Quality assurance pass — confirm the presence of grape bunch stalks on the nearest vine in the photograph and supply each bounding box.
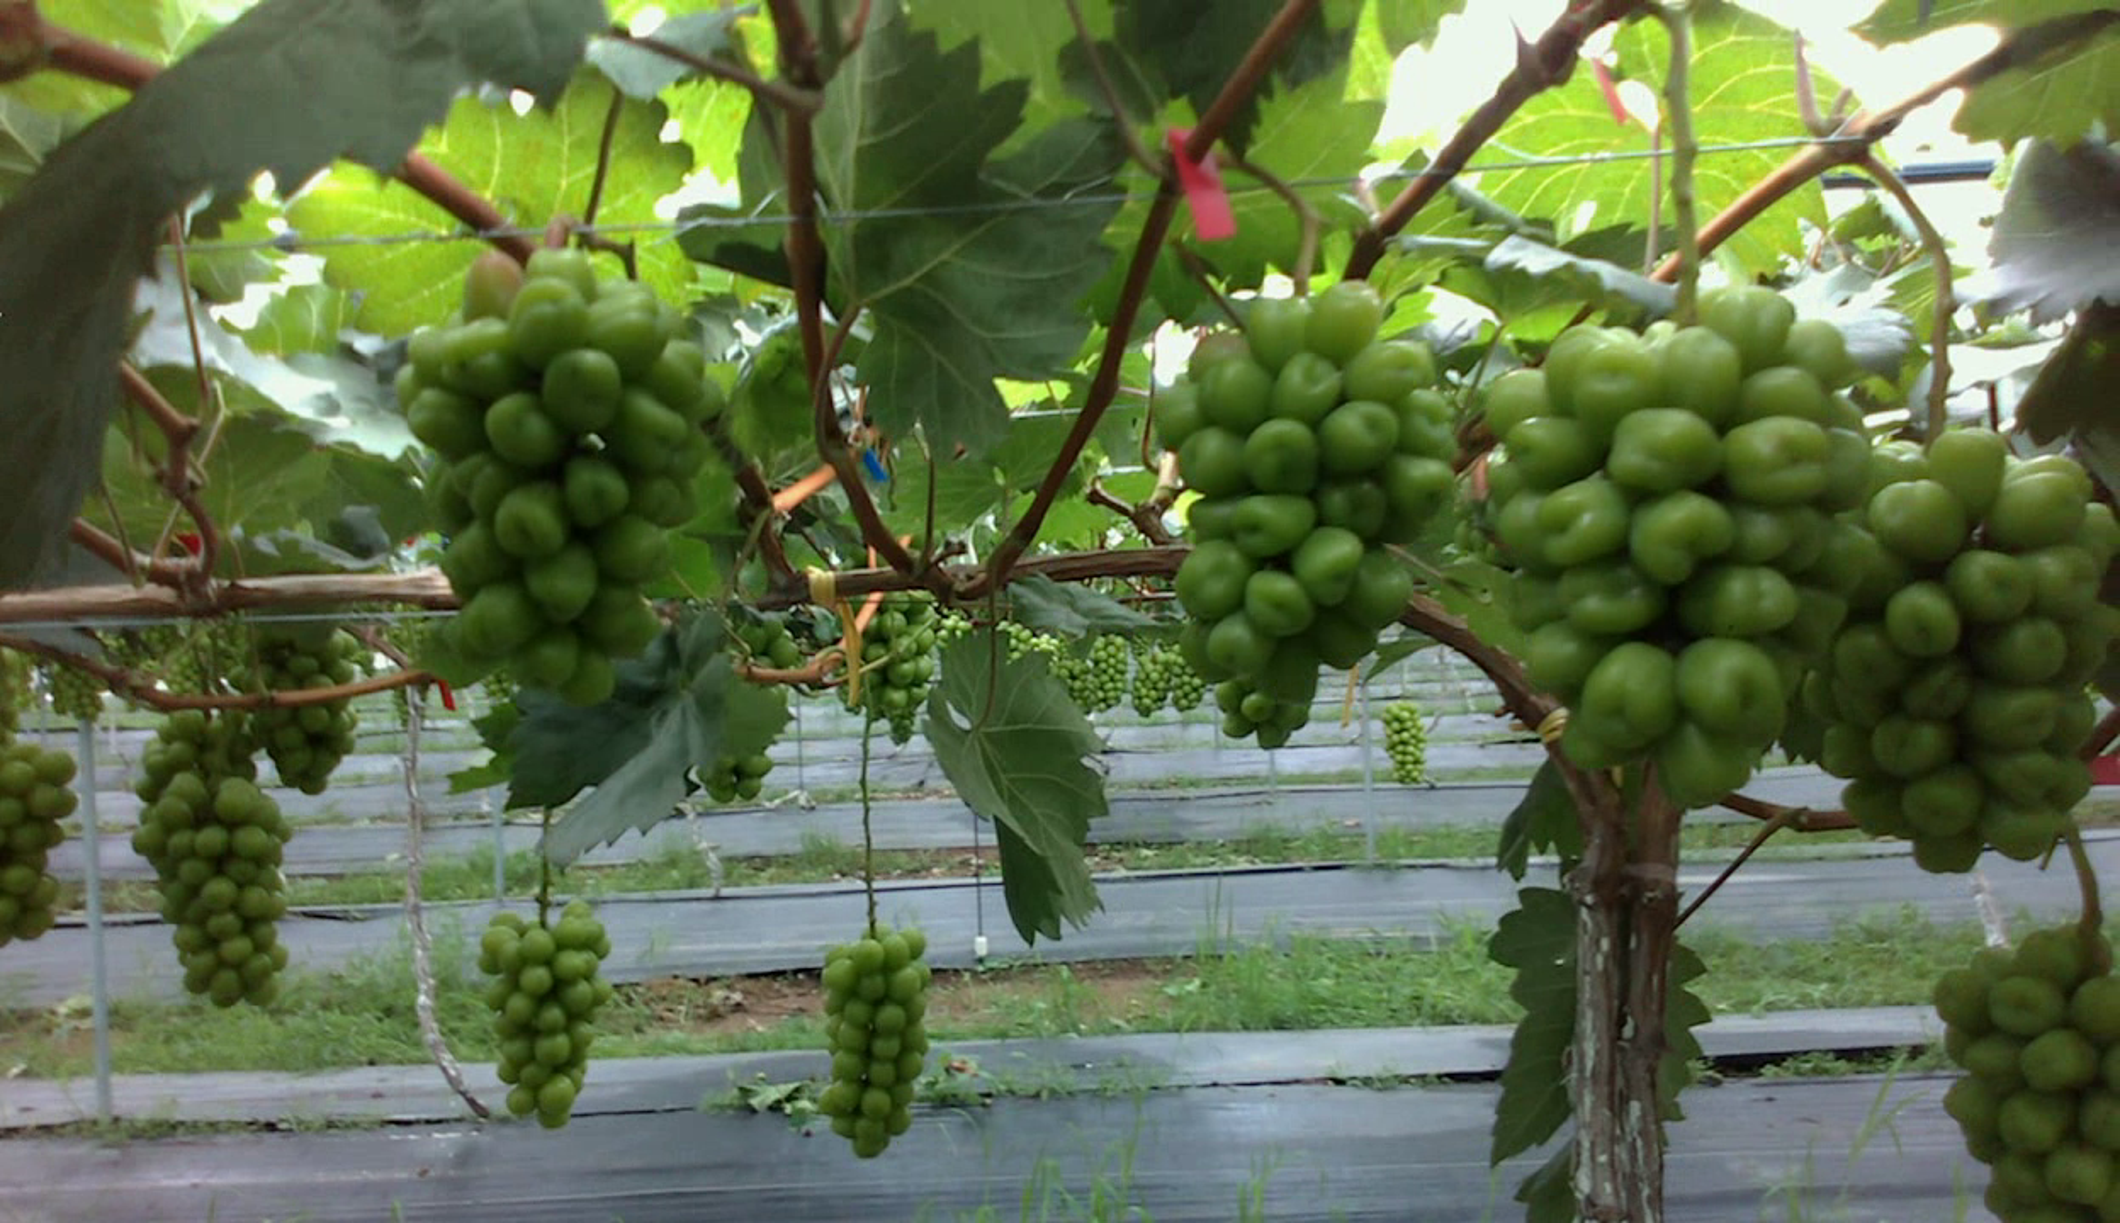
[2057,827,2103,978]
[1655,5,1695,324]
[1233,158,1320,294]
[545,212,588,245]
[1869,156,1954,443]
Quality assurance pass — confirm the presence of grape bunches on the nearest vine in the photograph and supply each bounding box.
[392,248,724,707]
[1796,426,2117,873]
[1481,285,1874,807]
[1153,279,1463,708]
[1928,924,2118,1221]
